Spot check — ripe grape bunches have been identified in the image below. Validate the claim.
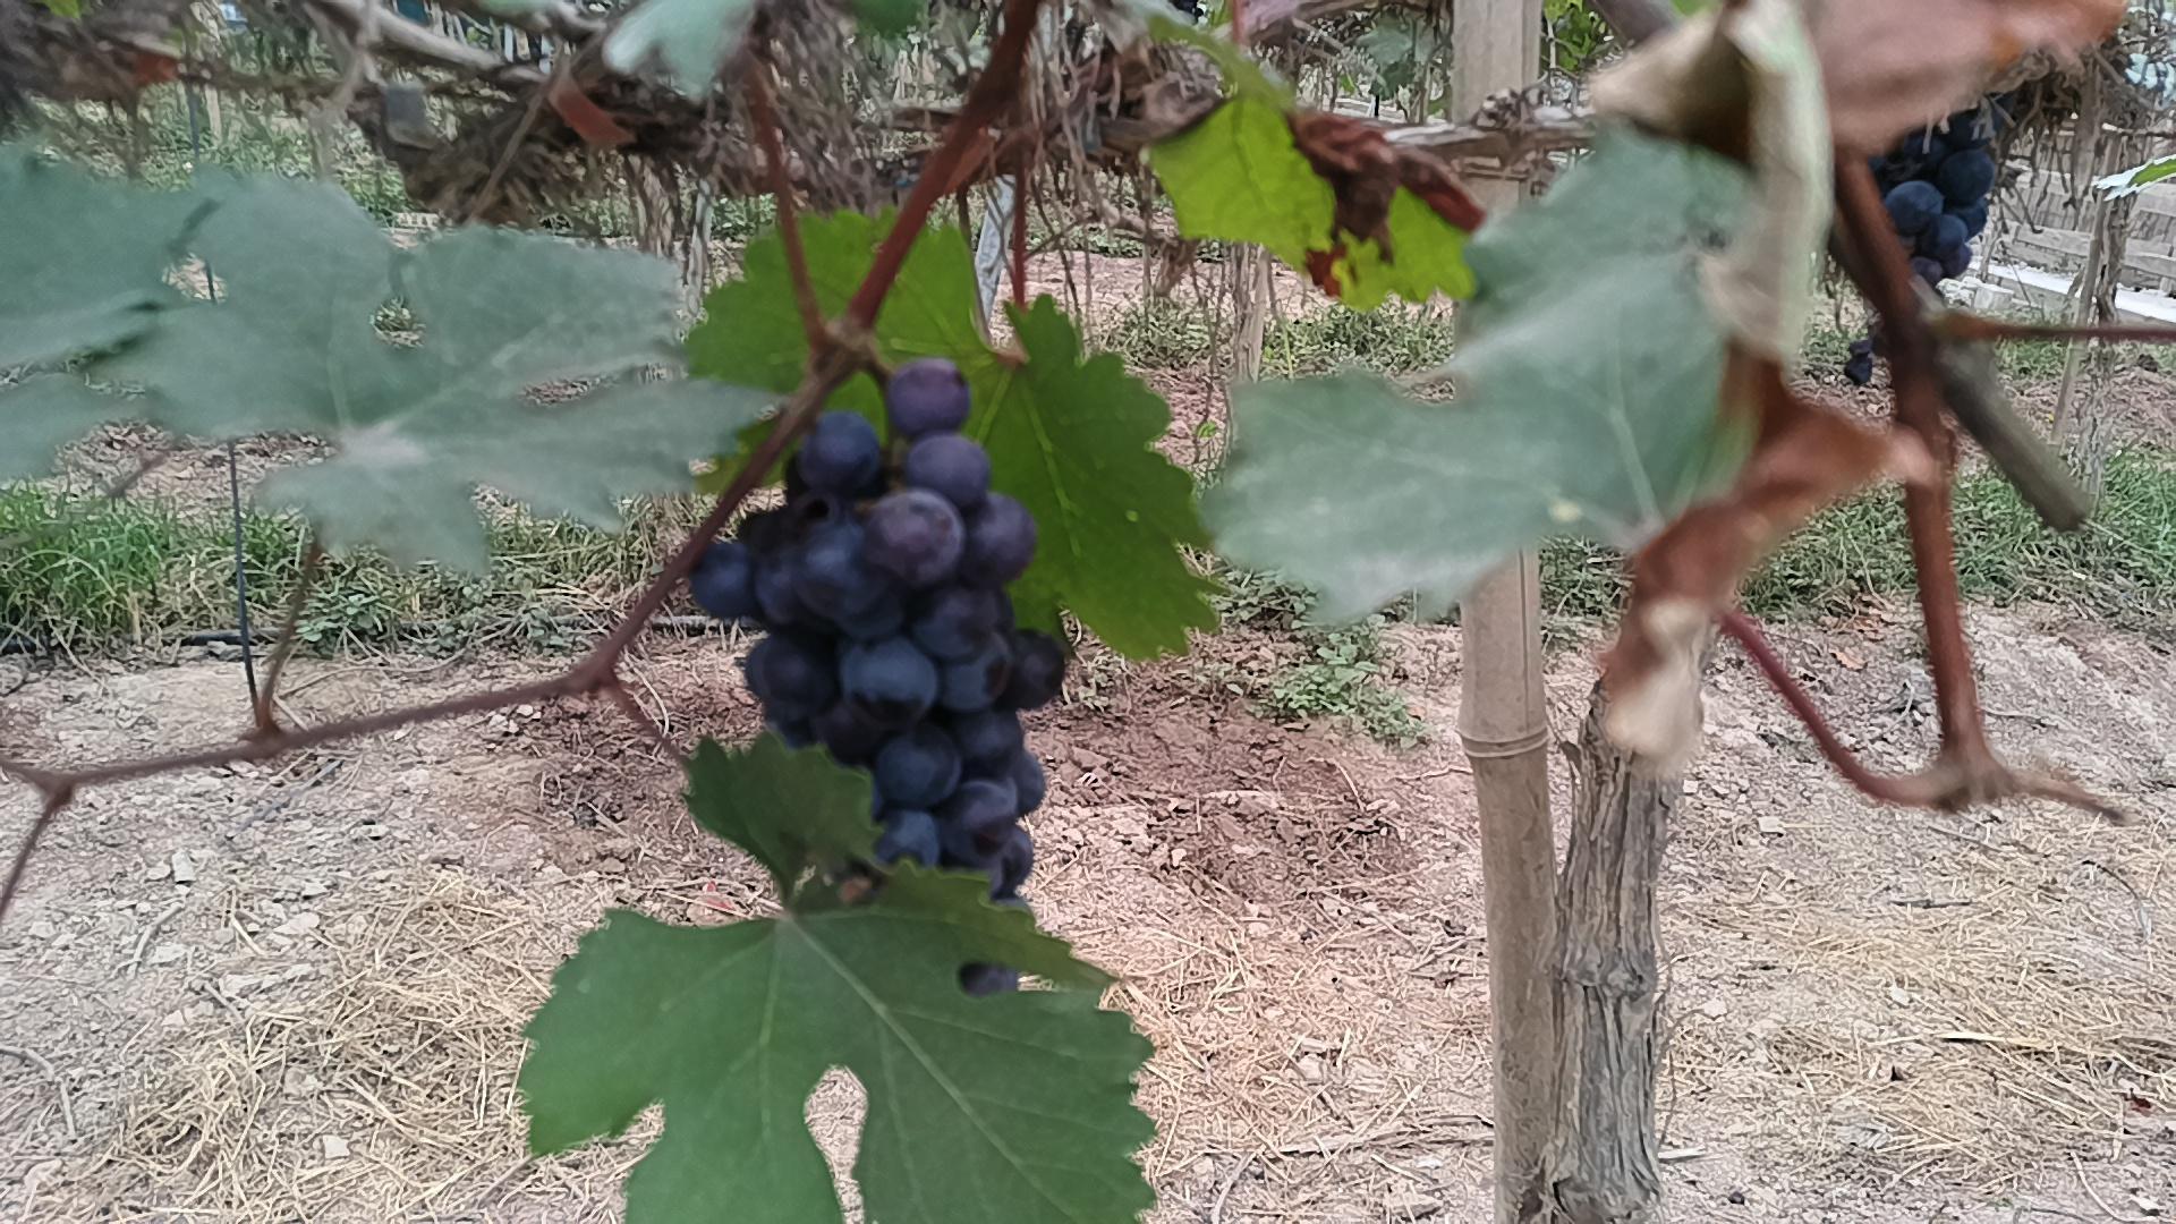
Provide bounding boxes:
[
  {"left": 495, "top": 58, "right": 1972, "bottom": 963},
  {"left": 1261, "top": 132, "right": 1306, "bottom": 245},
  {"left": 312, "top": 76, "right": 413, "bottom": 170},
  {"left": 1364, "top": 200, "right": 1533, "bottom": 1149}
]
[
  {"left": 690, "top": 358, "right": 1064, "bottom": 997},
  {"left": 1869, "top": 97, "right": 2006, "bottom": 289}
]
